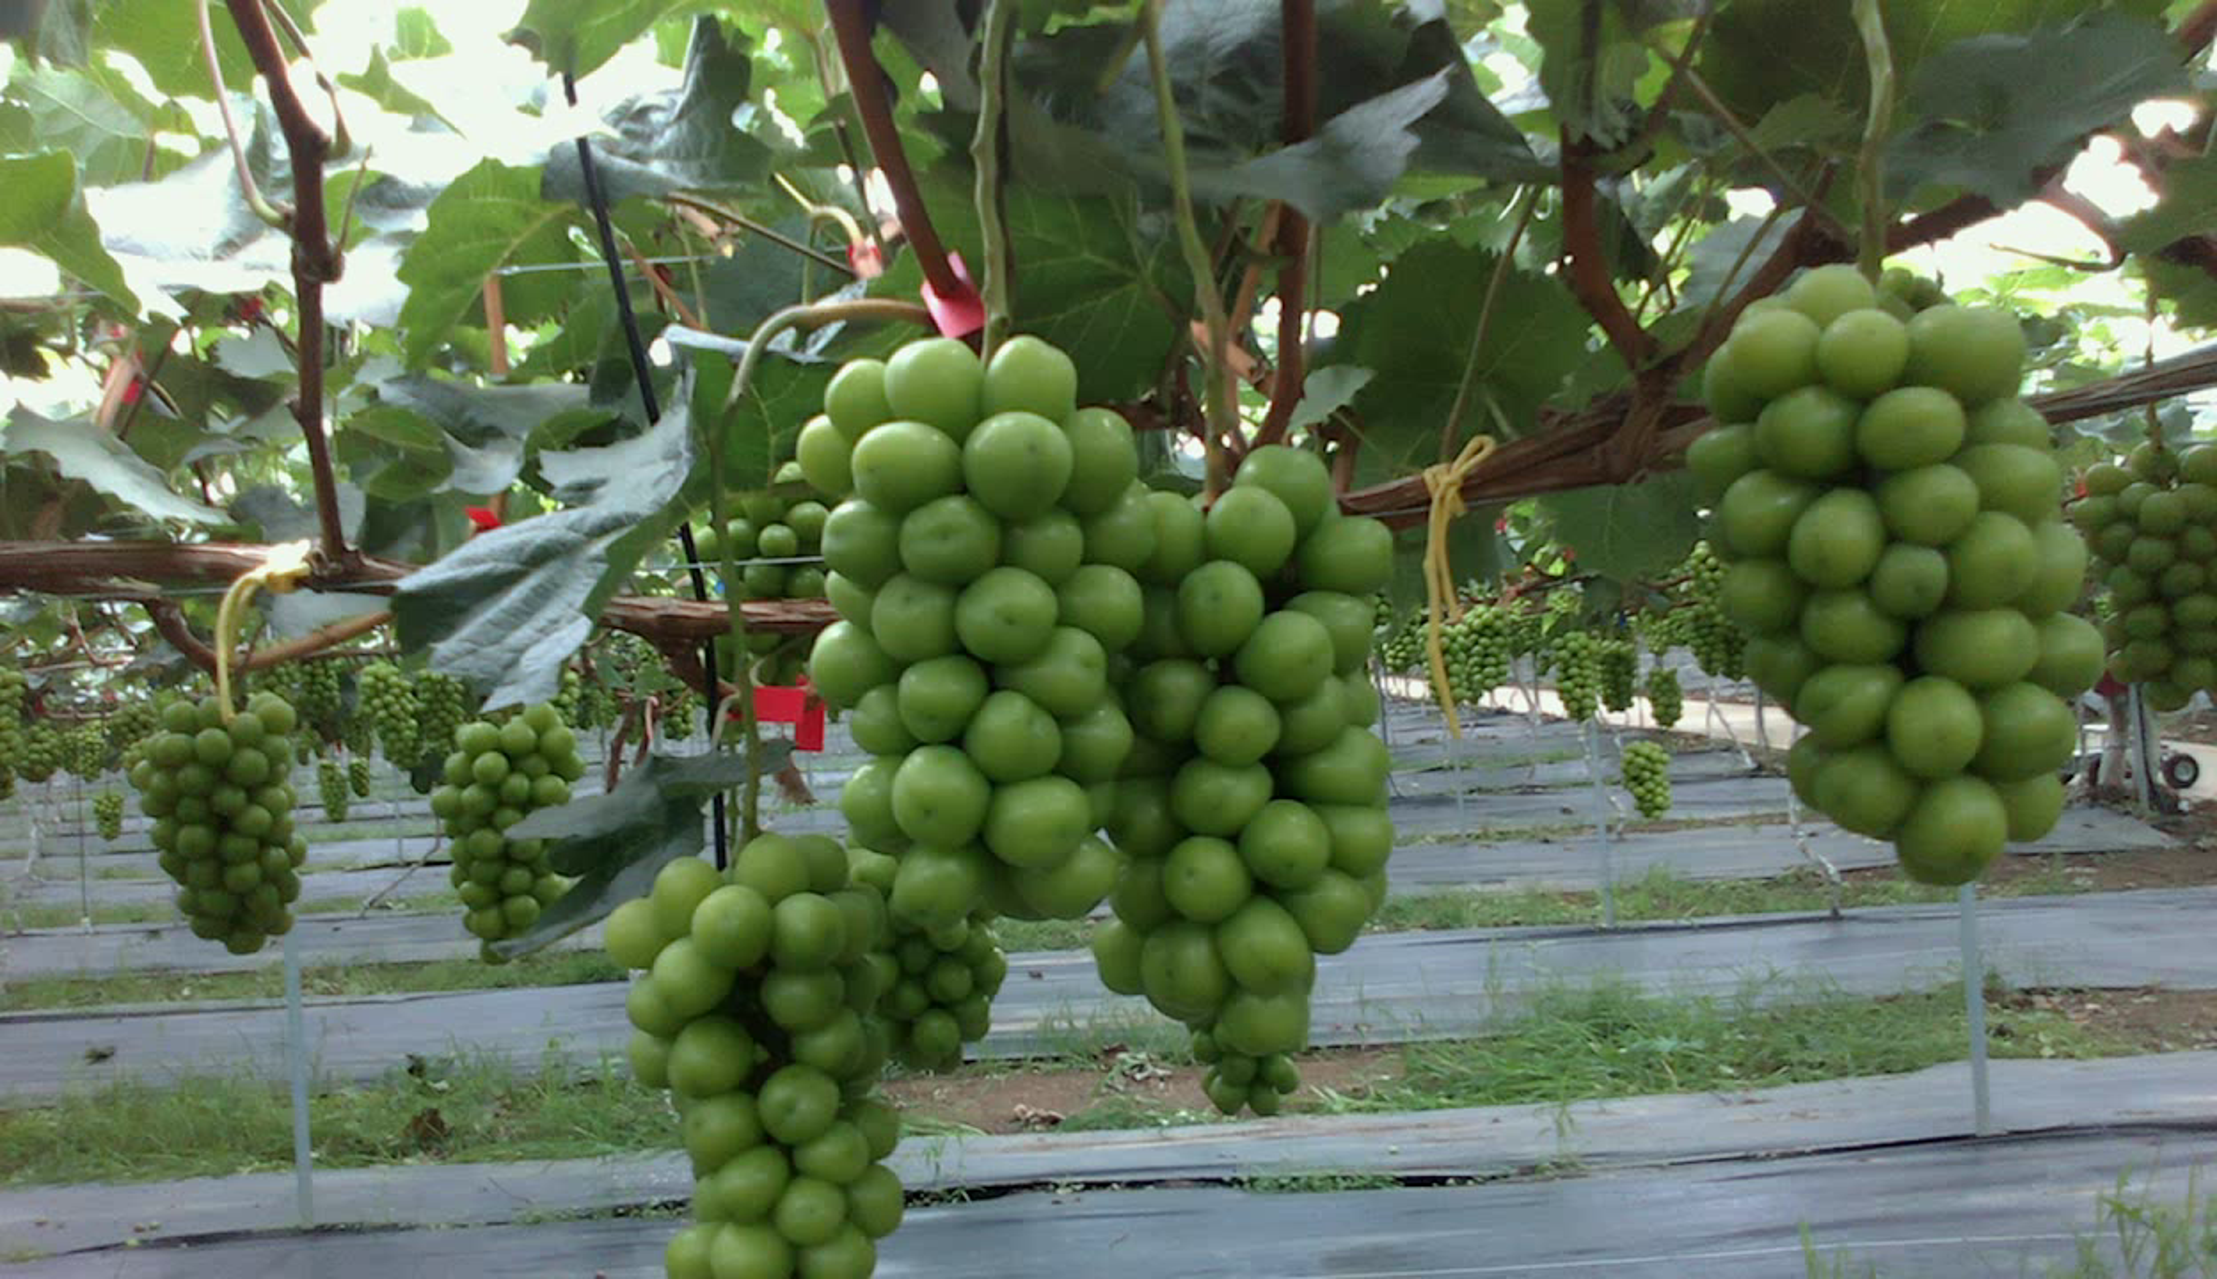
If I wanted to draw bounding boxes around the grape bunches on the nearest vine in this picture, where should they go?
[604,833,904,1277]
[1093,444,1395,1059]
[798,334,1158,933]
[1686,263,2105,888]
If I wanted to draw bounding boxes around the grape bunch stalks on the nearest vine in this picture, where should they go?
[1140,4,1231,506]
[712,311,808,851]
[1849,2,1894,284]
[973,0,1007,364]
